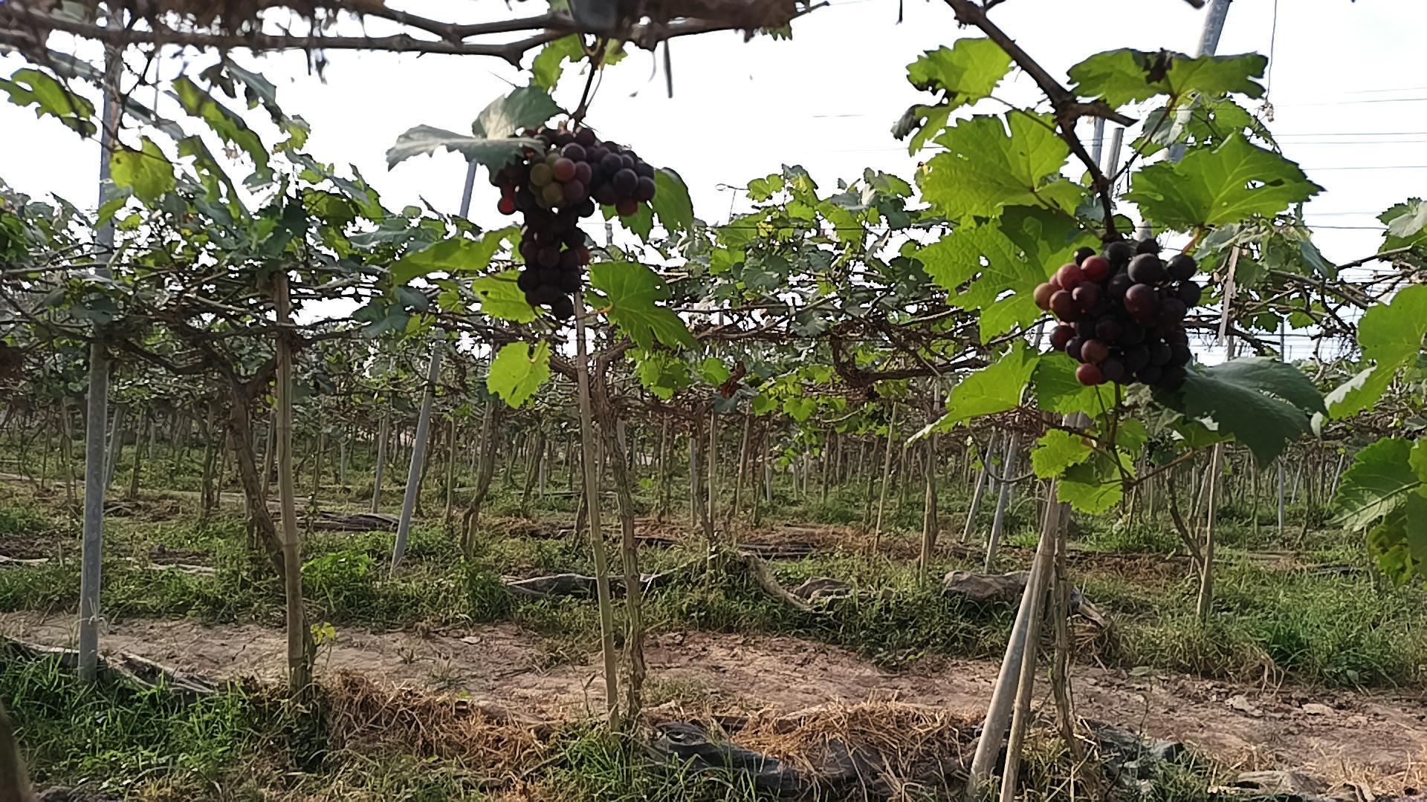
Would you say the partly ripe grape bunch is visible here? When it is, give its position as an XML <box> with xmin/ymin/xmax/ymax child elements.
<box><xmin>492</xmin><ymin>127</ymin><xmax>656</xmax><ymax>319</ymax></box>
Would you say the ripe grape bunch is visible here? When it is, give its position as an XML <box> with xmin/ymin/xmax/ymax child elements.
<box><xmin>1035</xmin><ymin>238</ymin><xmax>1200</xmax><ymax>389</ymax></box>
